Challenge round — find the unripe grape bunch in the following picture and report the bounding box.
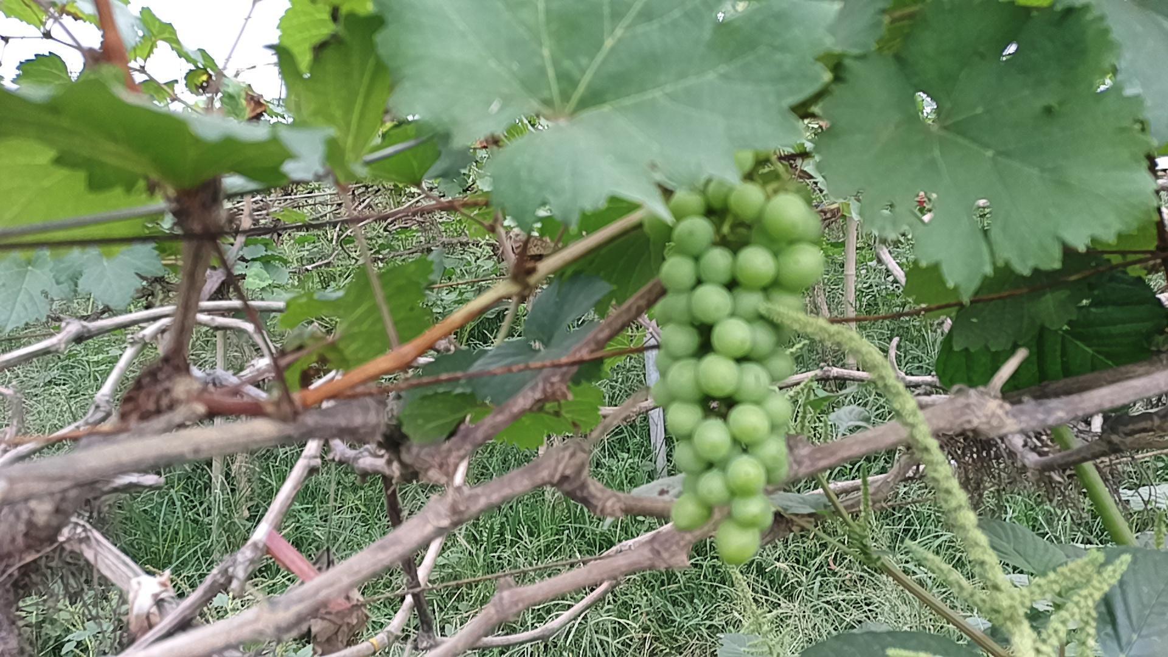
[655,181,823,565]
